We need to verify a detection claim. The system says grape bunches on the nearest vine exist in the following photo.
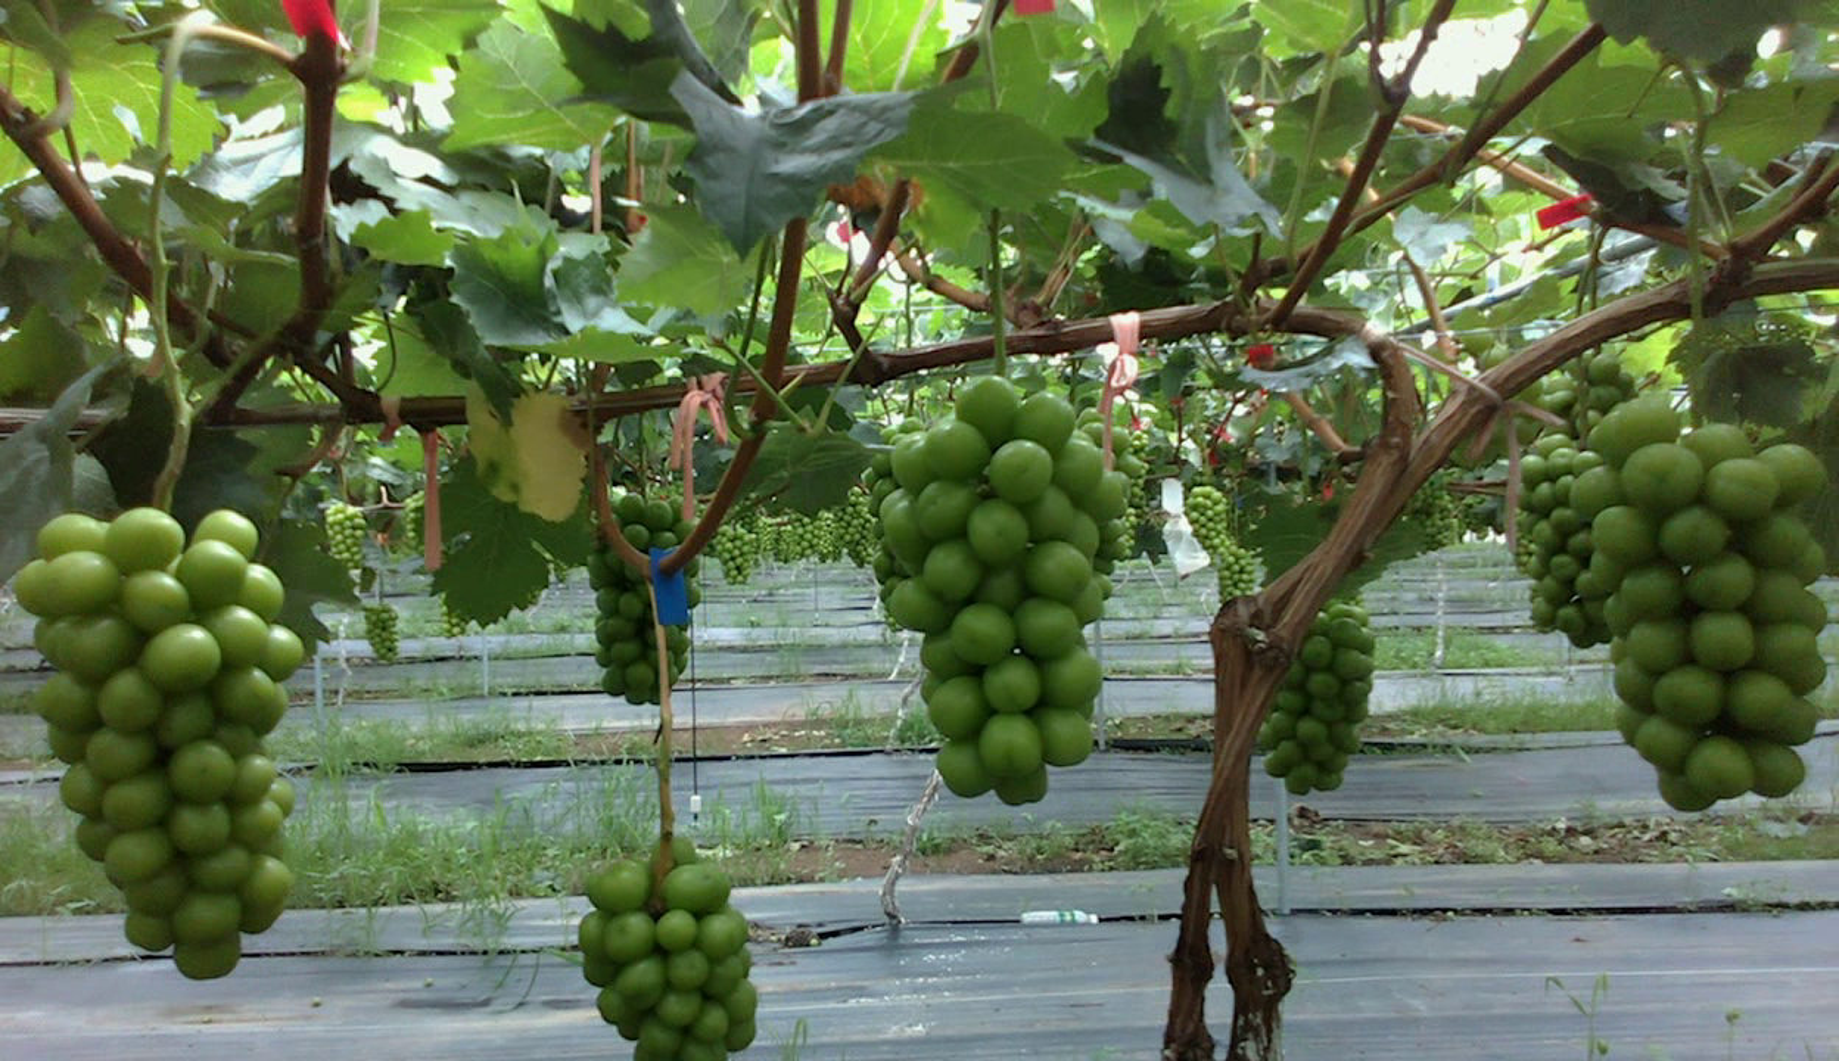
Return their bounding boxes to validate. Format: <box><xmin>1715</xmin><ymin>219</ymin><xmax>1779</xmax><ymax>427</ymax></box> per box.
<box><xmin>15</xmin><ymin>507</ymin><xmax>305</xmax><ymax>980</ymax></box>
<box><xmin>880</xmin><ymin>374</ymin><xmax>1133</xmax><ymax>808</ymax></box>
<box><xmin>578</xmin><ymin>837</ymin><xmax>759</xmax><ymax>1060</ymax></box>
<box><xmin>1569</xmin><ymin>398</ymin><xmax>1829</xmax><ymax>813</ymax></box>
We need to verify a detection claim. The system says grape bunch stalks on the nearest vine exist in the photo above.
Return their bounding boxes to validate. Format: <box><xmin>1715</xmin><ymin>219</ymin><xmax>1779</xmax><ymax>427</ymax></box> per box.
<box><xmin>149</xmin><ymin>34</ymin><xmax>193</xmax><ymax>514</ymax></box>
<box><xmin>1684</xmin><ymin>174</ymin><xmax>1703</xmax><ymax>430</ymax></box>
<box><xmin>987</xmin><ymin>209</ymin><xmax>1008</xmax><ymax>376</ymax></box>
<box><xmin>642</xmin><ymin>578</ymin><xmax>676</xmax><ymax>918</ymax></box>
